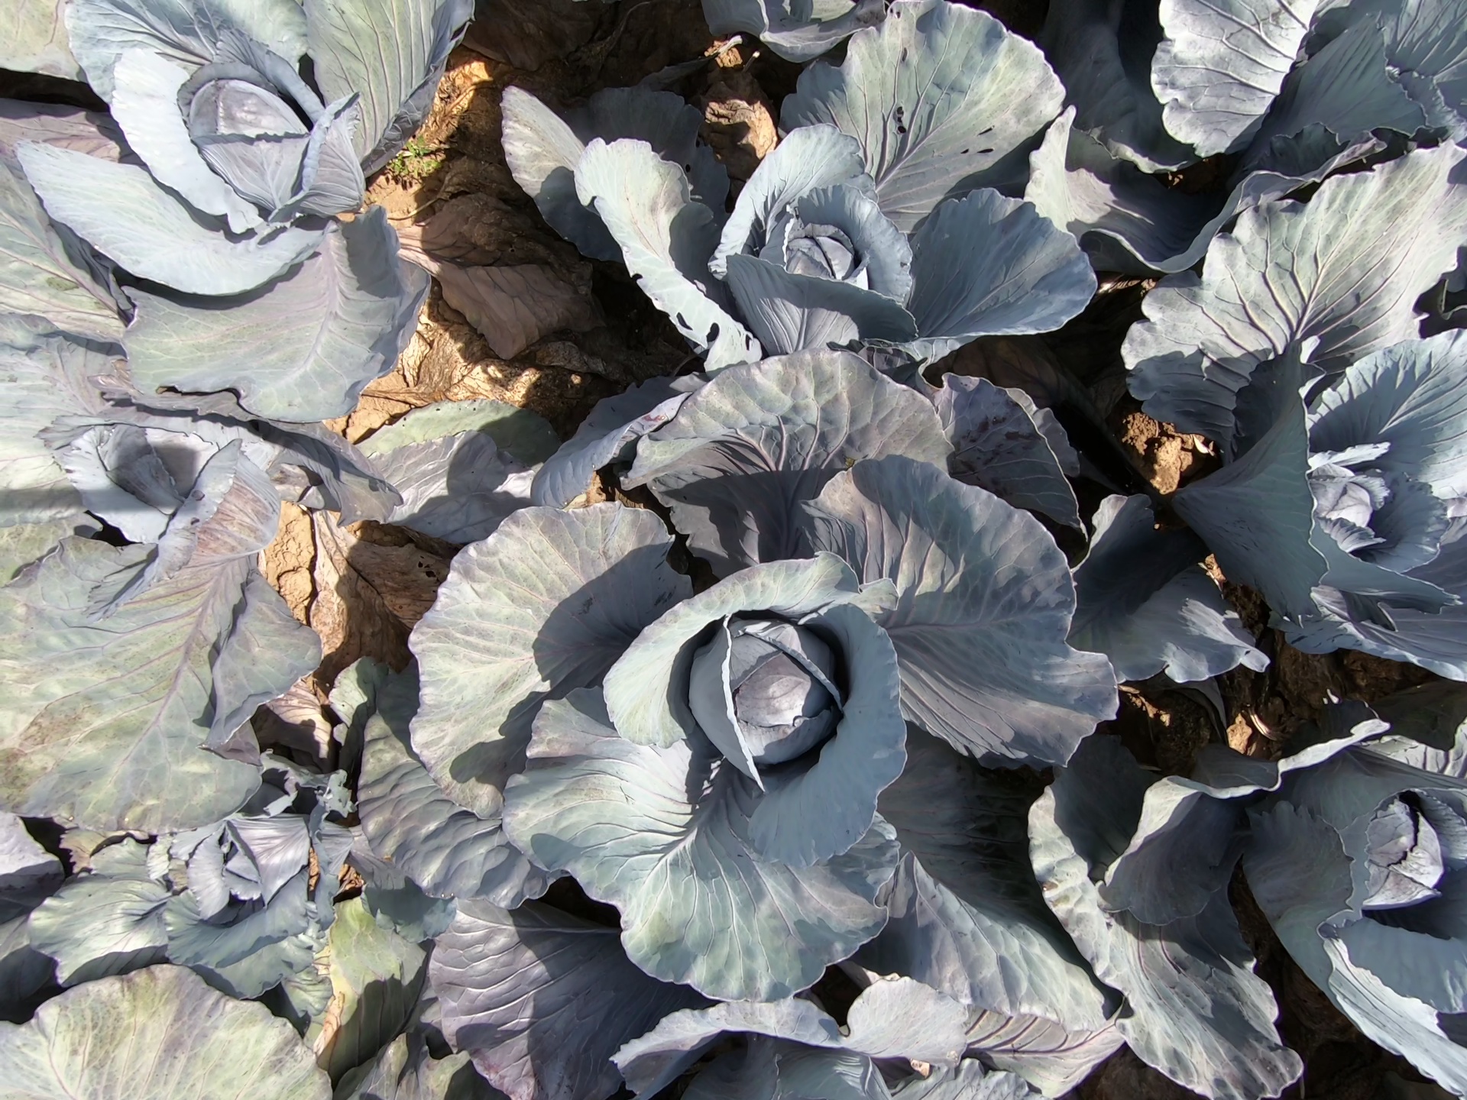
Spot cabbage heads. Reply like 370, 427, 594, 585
760, 228, 867, 338
1260, 454, 1374, 561
99, 406, 248, 515
691, 620, 837, 762
1315, 790, 1446, 911
185, 78, 313, 198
